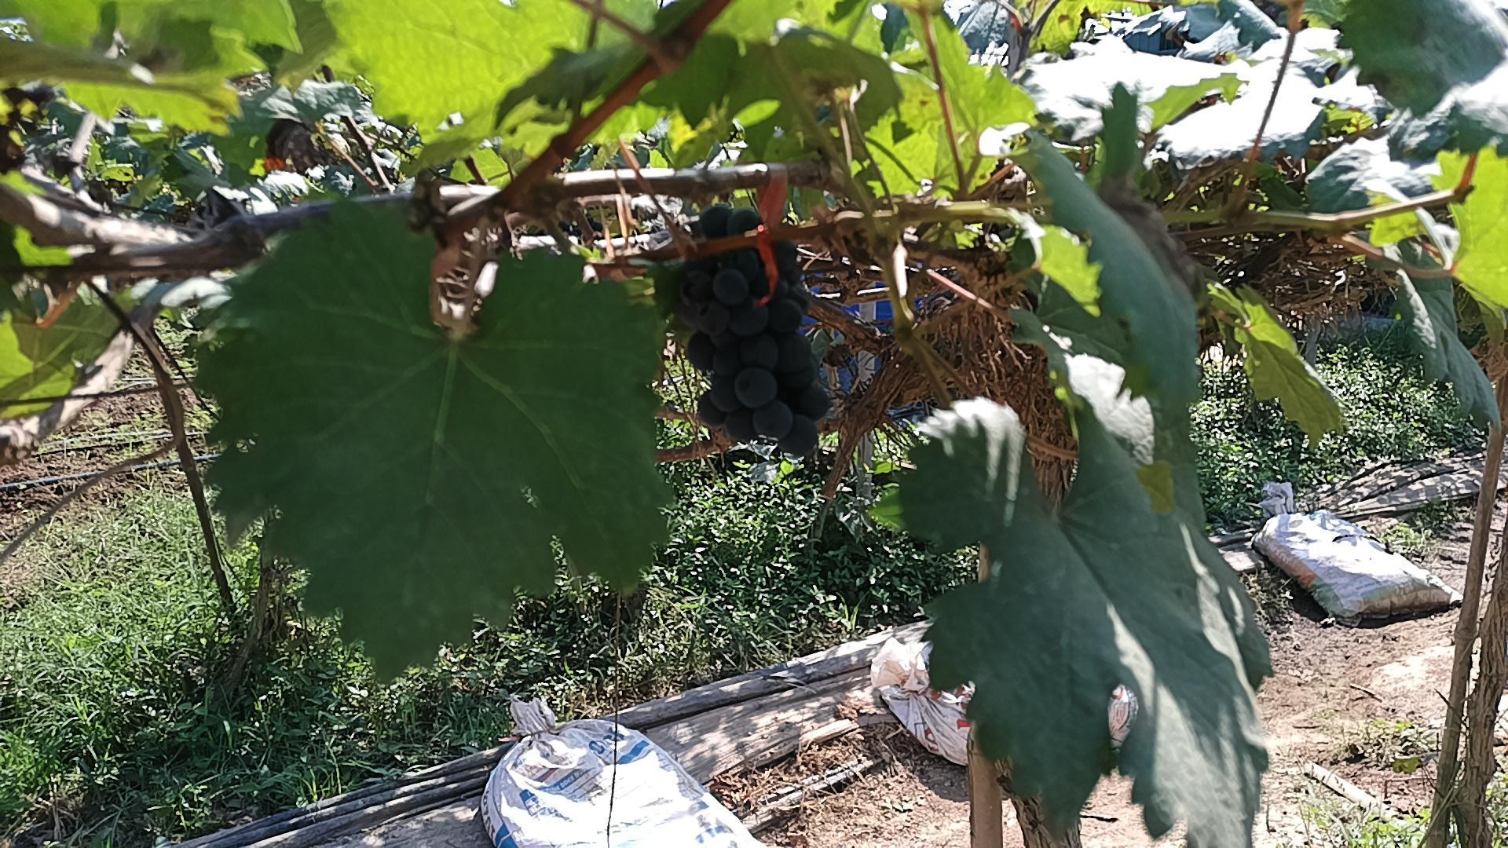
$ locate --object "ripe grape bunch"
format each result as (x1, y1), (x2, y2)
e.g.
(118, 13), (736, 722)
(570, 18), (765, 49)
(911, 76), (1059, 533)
(677, 203), (831, 456)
